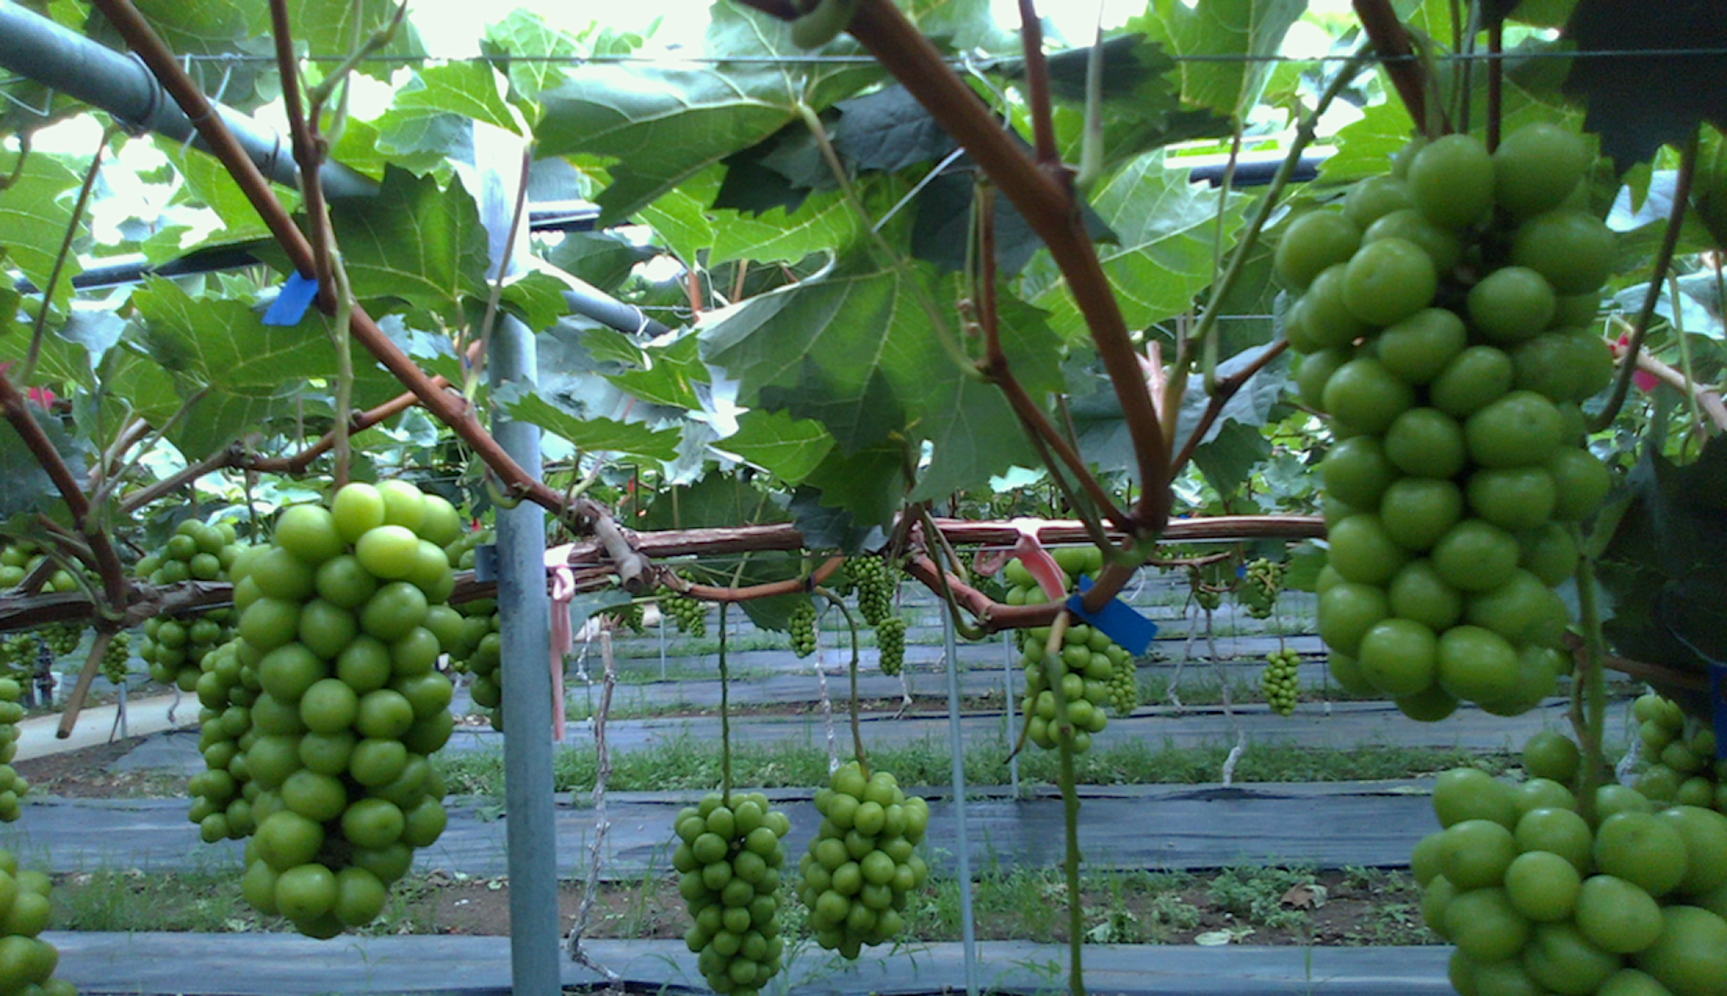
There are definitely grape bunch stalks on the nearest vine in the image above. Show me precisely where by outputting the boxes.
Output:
[1413,30,1441,137]
[324,209,351,491]
[1573,528,1605,824]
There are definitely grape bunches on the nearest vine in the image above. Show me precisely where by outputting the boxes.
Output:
[228,479,464,941]
[1406,765,1726,995]
[1272,122,1622,723]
